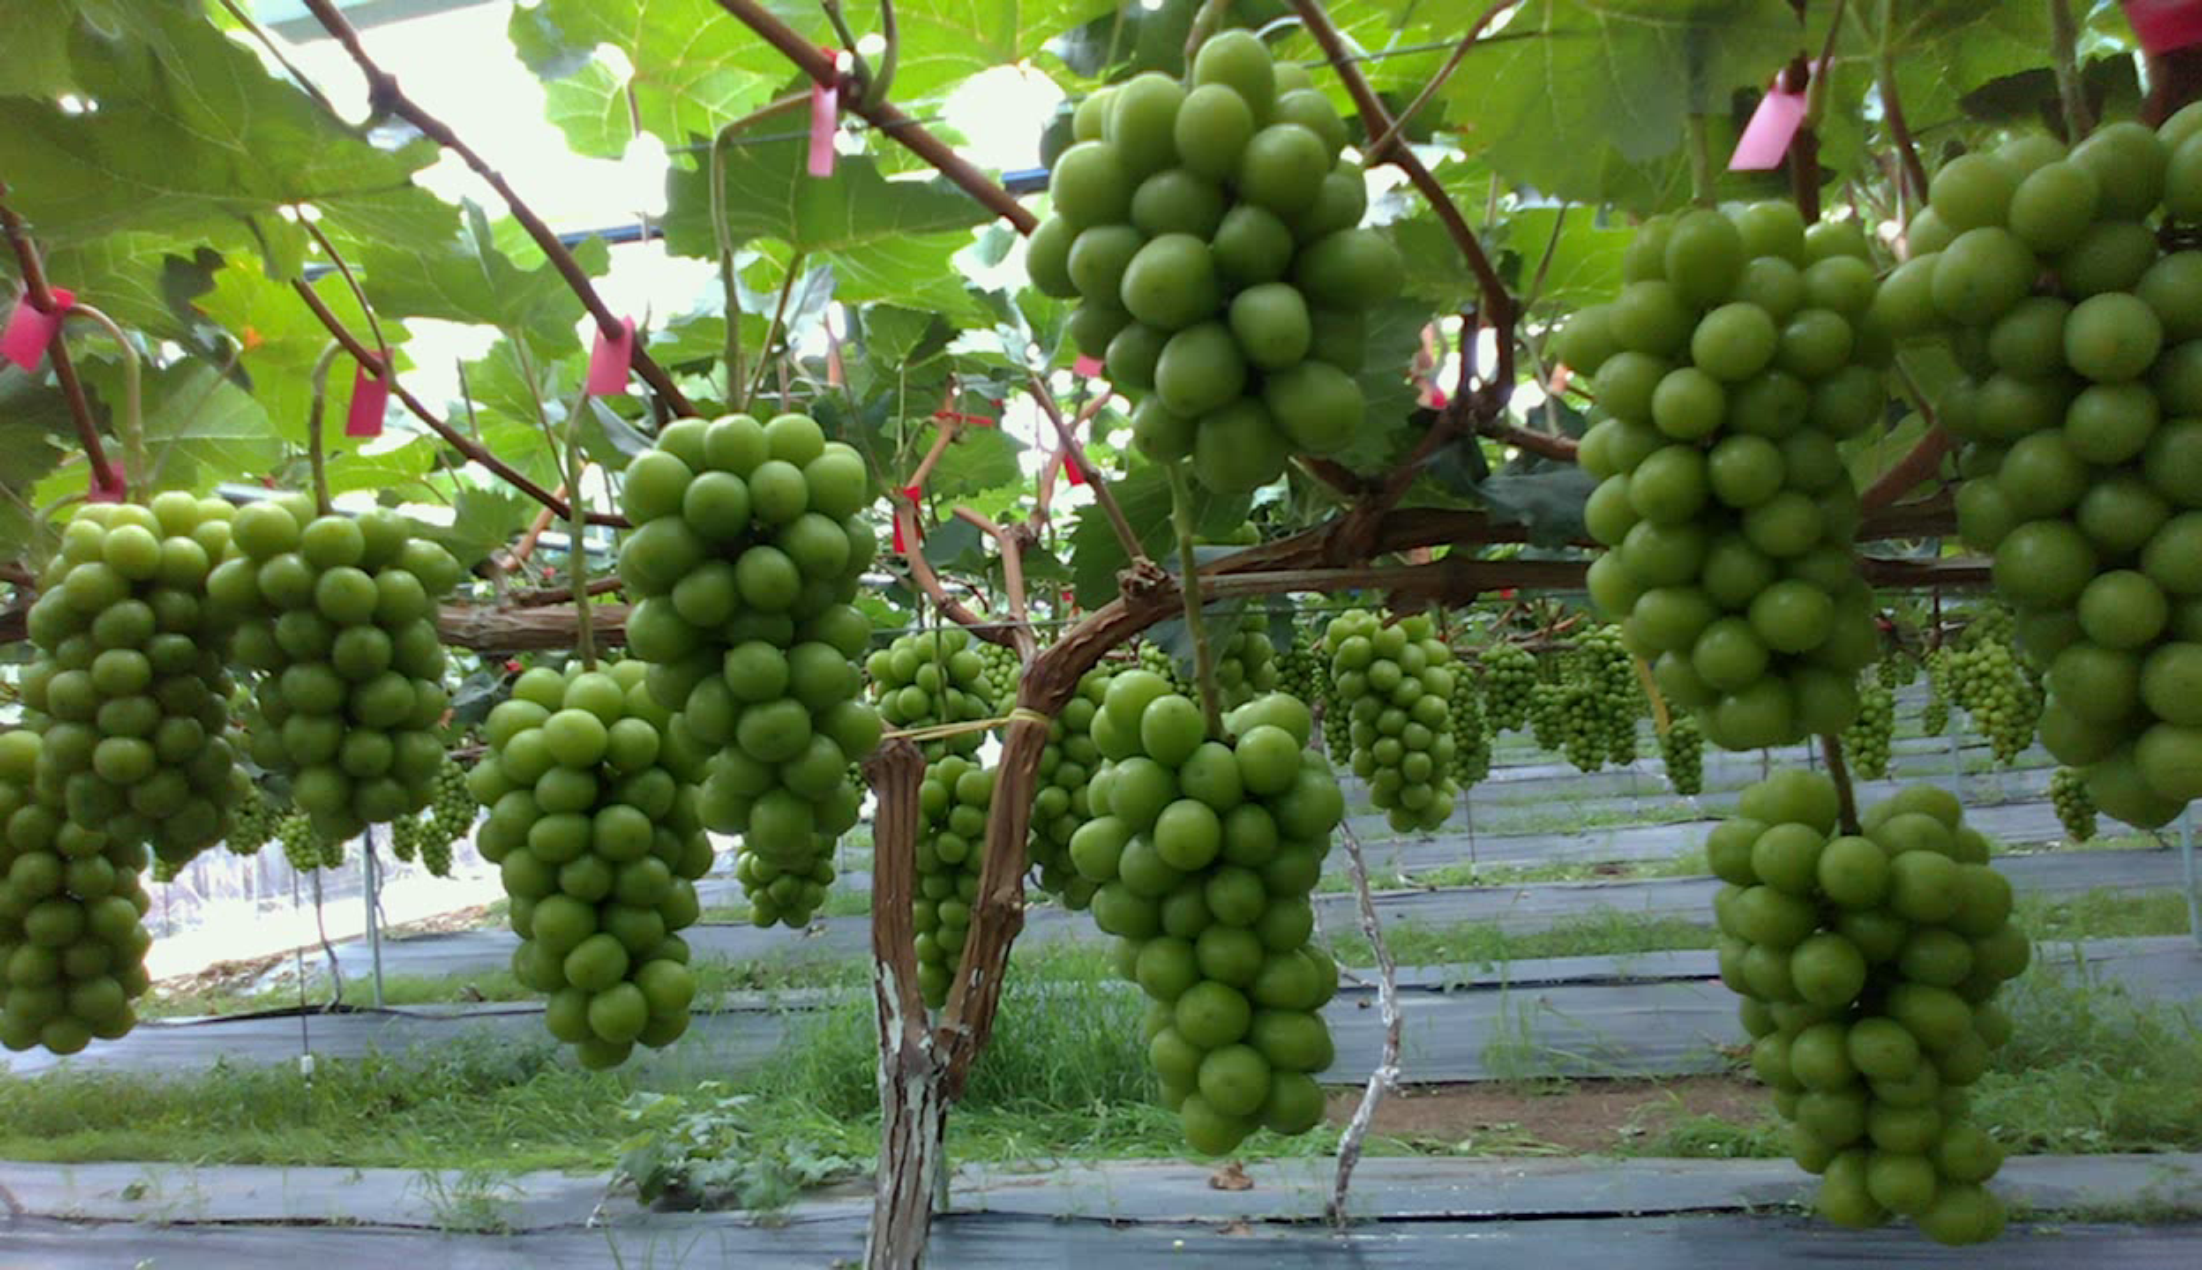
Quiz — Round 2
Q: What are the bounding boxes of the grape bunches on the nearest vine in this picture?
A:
[1558,201,1893,755]
[1025,34,1401,497]
[464,661,715,1071]
[1069,665,1344,1155]
[16,489,251,866]
[210,496,455,838]
[614,415,882,866]
[1886,102,2200,833]
[0,732,148,1053]
[1706,769,2031,1240]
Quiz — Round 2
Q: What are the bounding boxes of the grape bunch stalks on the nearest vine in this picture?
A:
[1821,736,1861,836]
[307,342,339,510]
[2048,2,2093,139]
[1180,0,1228,85]
[72,303,146,501]
[1687,28,1713,201]
[1163,462,1219,739]
[30,492,83,584]
[565,390,596,672]
[709,92,810,409]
